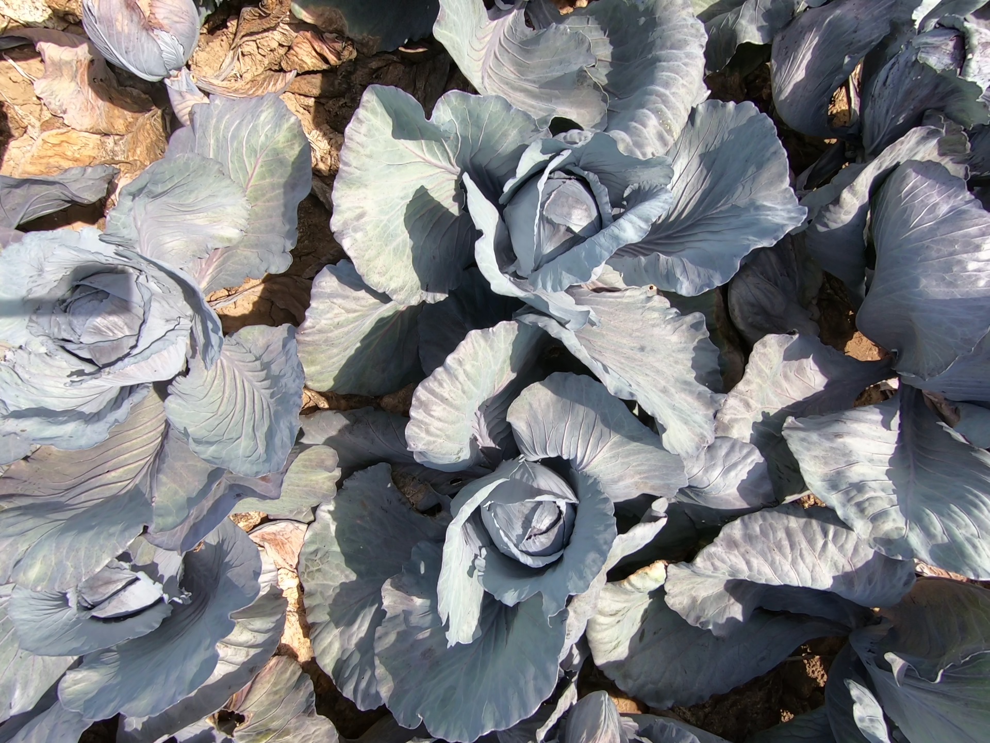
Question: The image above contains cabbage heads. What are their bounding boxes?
[83,3,192,72]
[64,276,170,360]
[510,177,602,270]
[480,468,575,562]
[883,34,972,125]
[74,528,178,616]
